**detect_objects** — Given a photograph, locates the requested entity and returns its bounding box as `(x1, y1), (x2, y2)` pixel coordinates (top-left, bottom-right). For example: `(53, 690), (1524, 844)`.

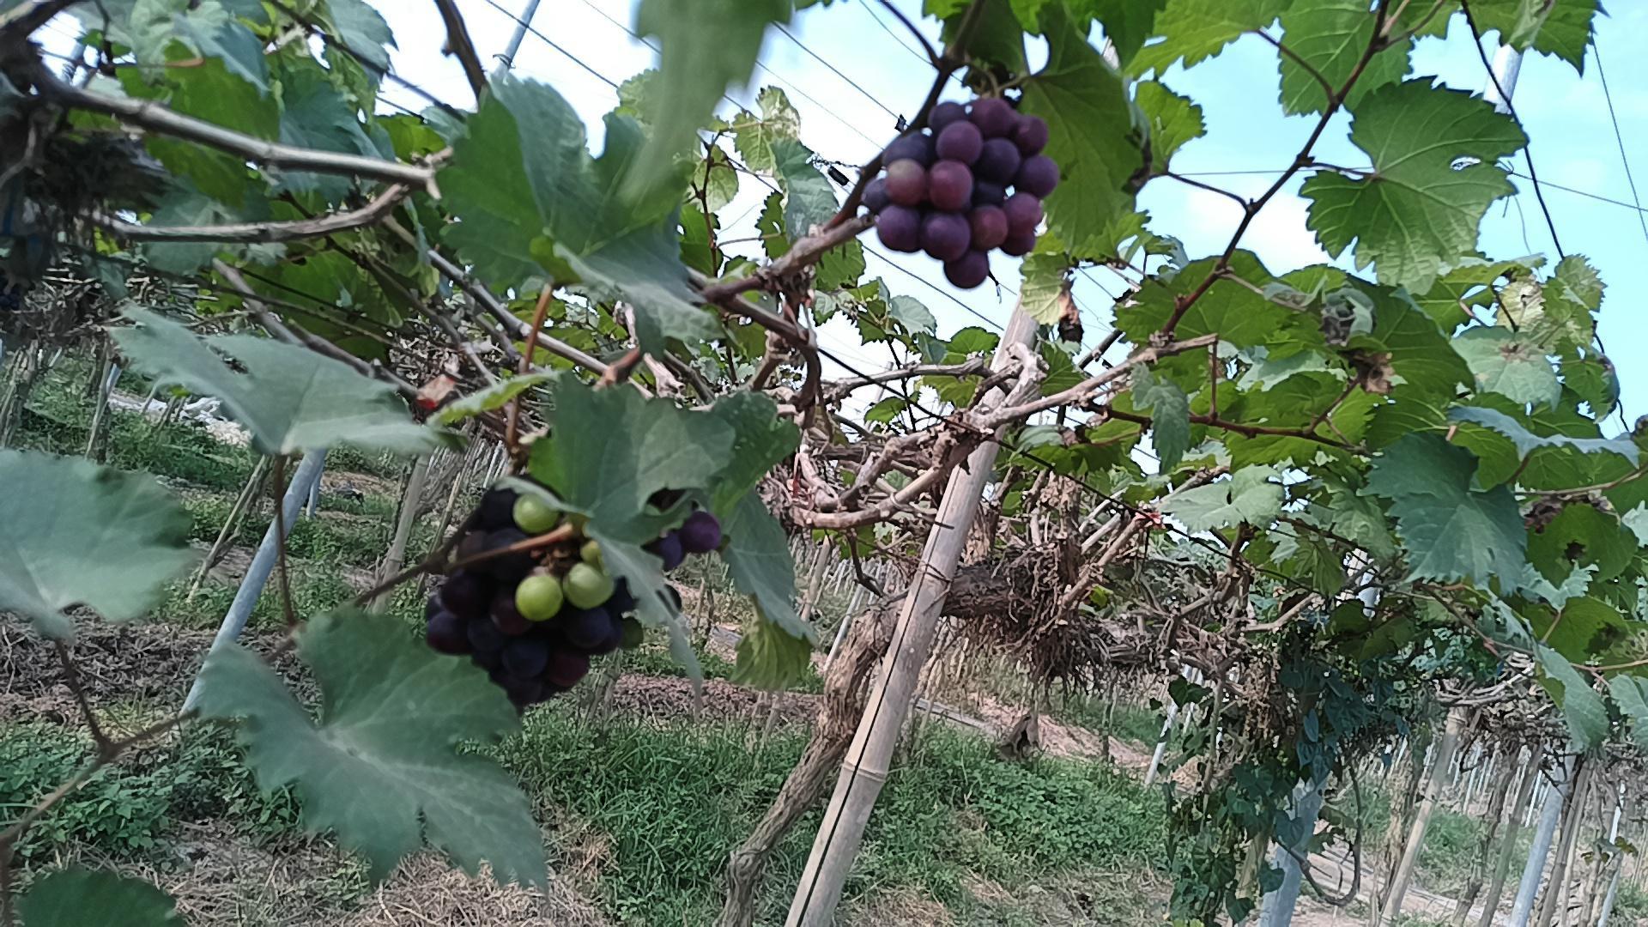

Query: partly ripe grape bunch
(426, 486), (723, 707)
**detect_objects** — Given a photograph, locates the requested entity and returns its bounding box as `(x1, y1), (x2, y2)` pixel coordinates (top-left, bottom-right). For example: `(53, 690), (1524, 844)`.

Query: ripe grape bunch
(862, 98), (1059, 288)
